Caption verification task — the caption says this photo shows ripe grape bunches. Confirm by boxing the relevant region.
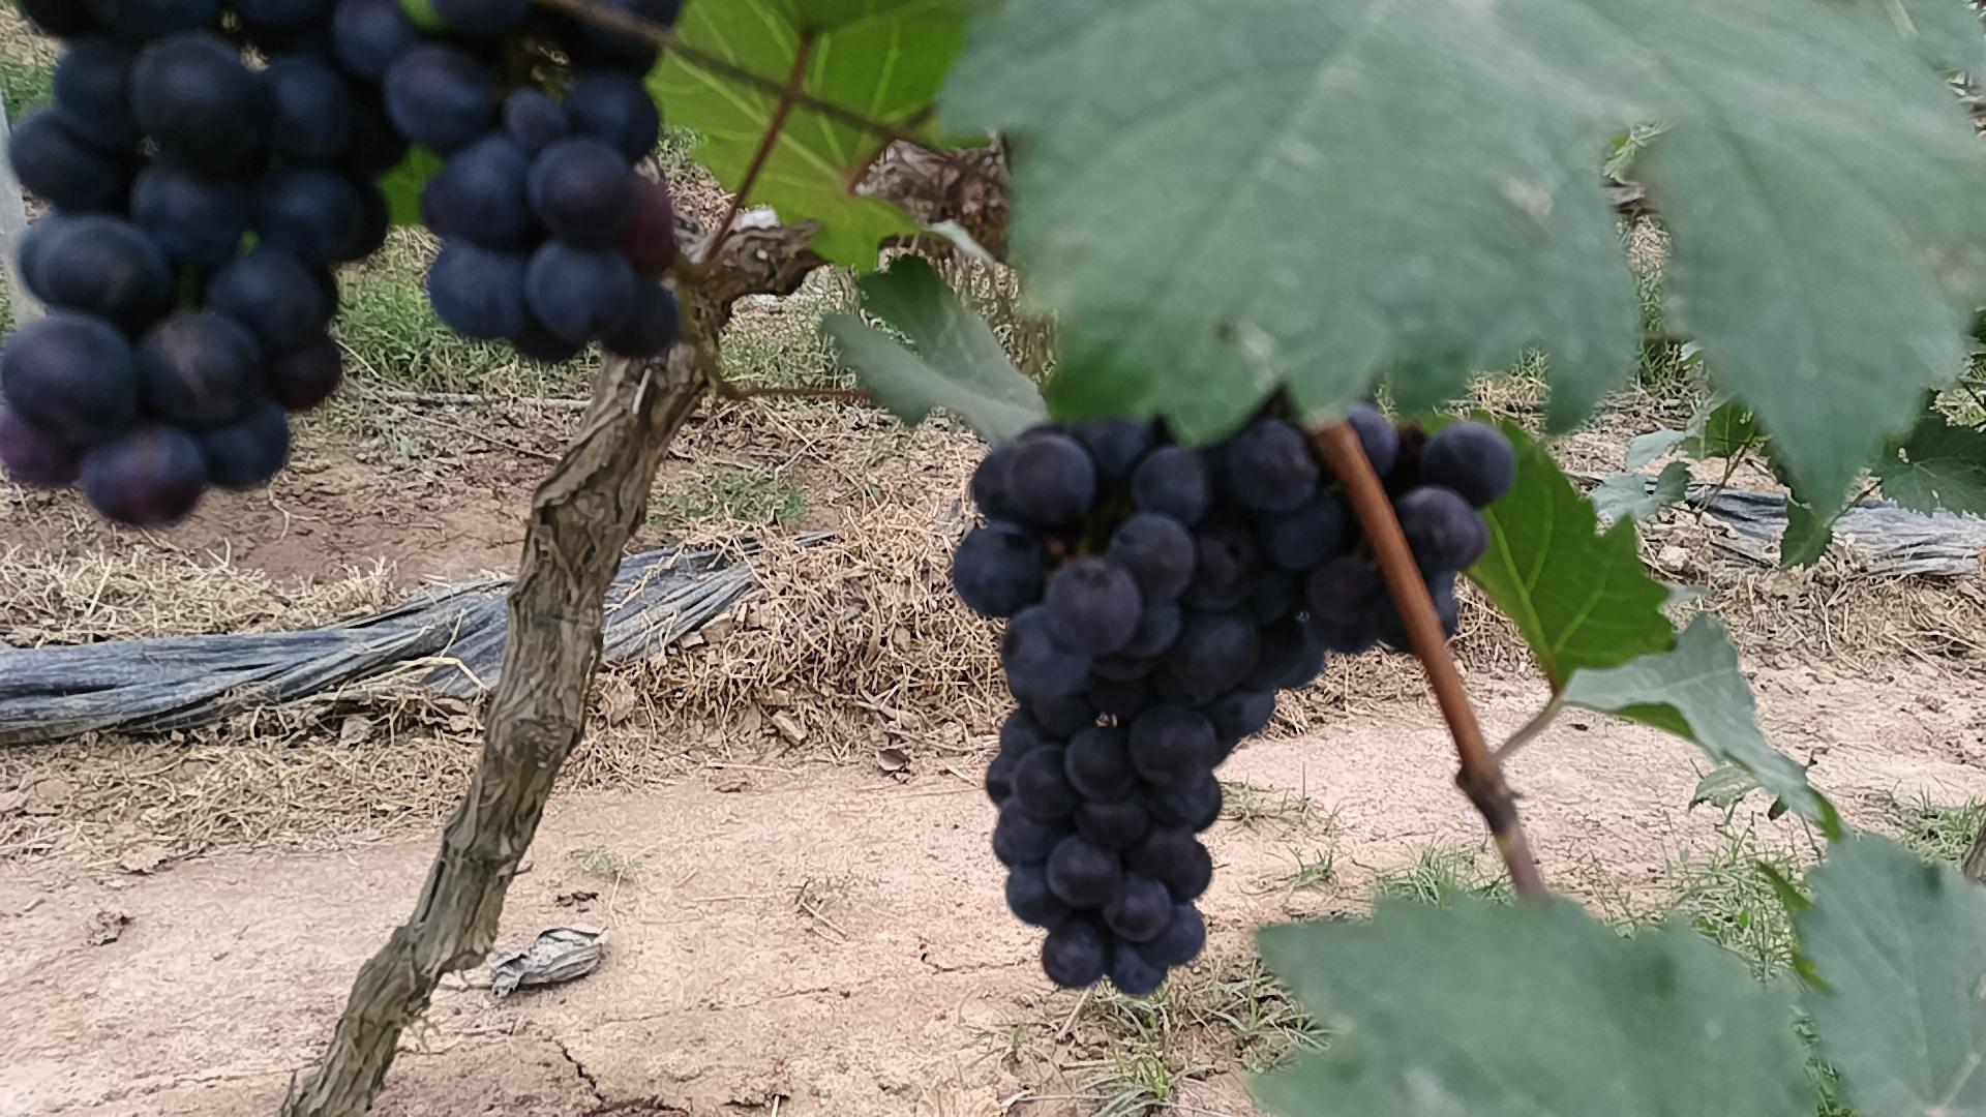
[334,0,682,360]
[957,406,1517,992]
[0,0,398,525]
